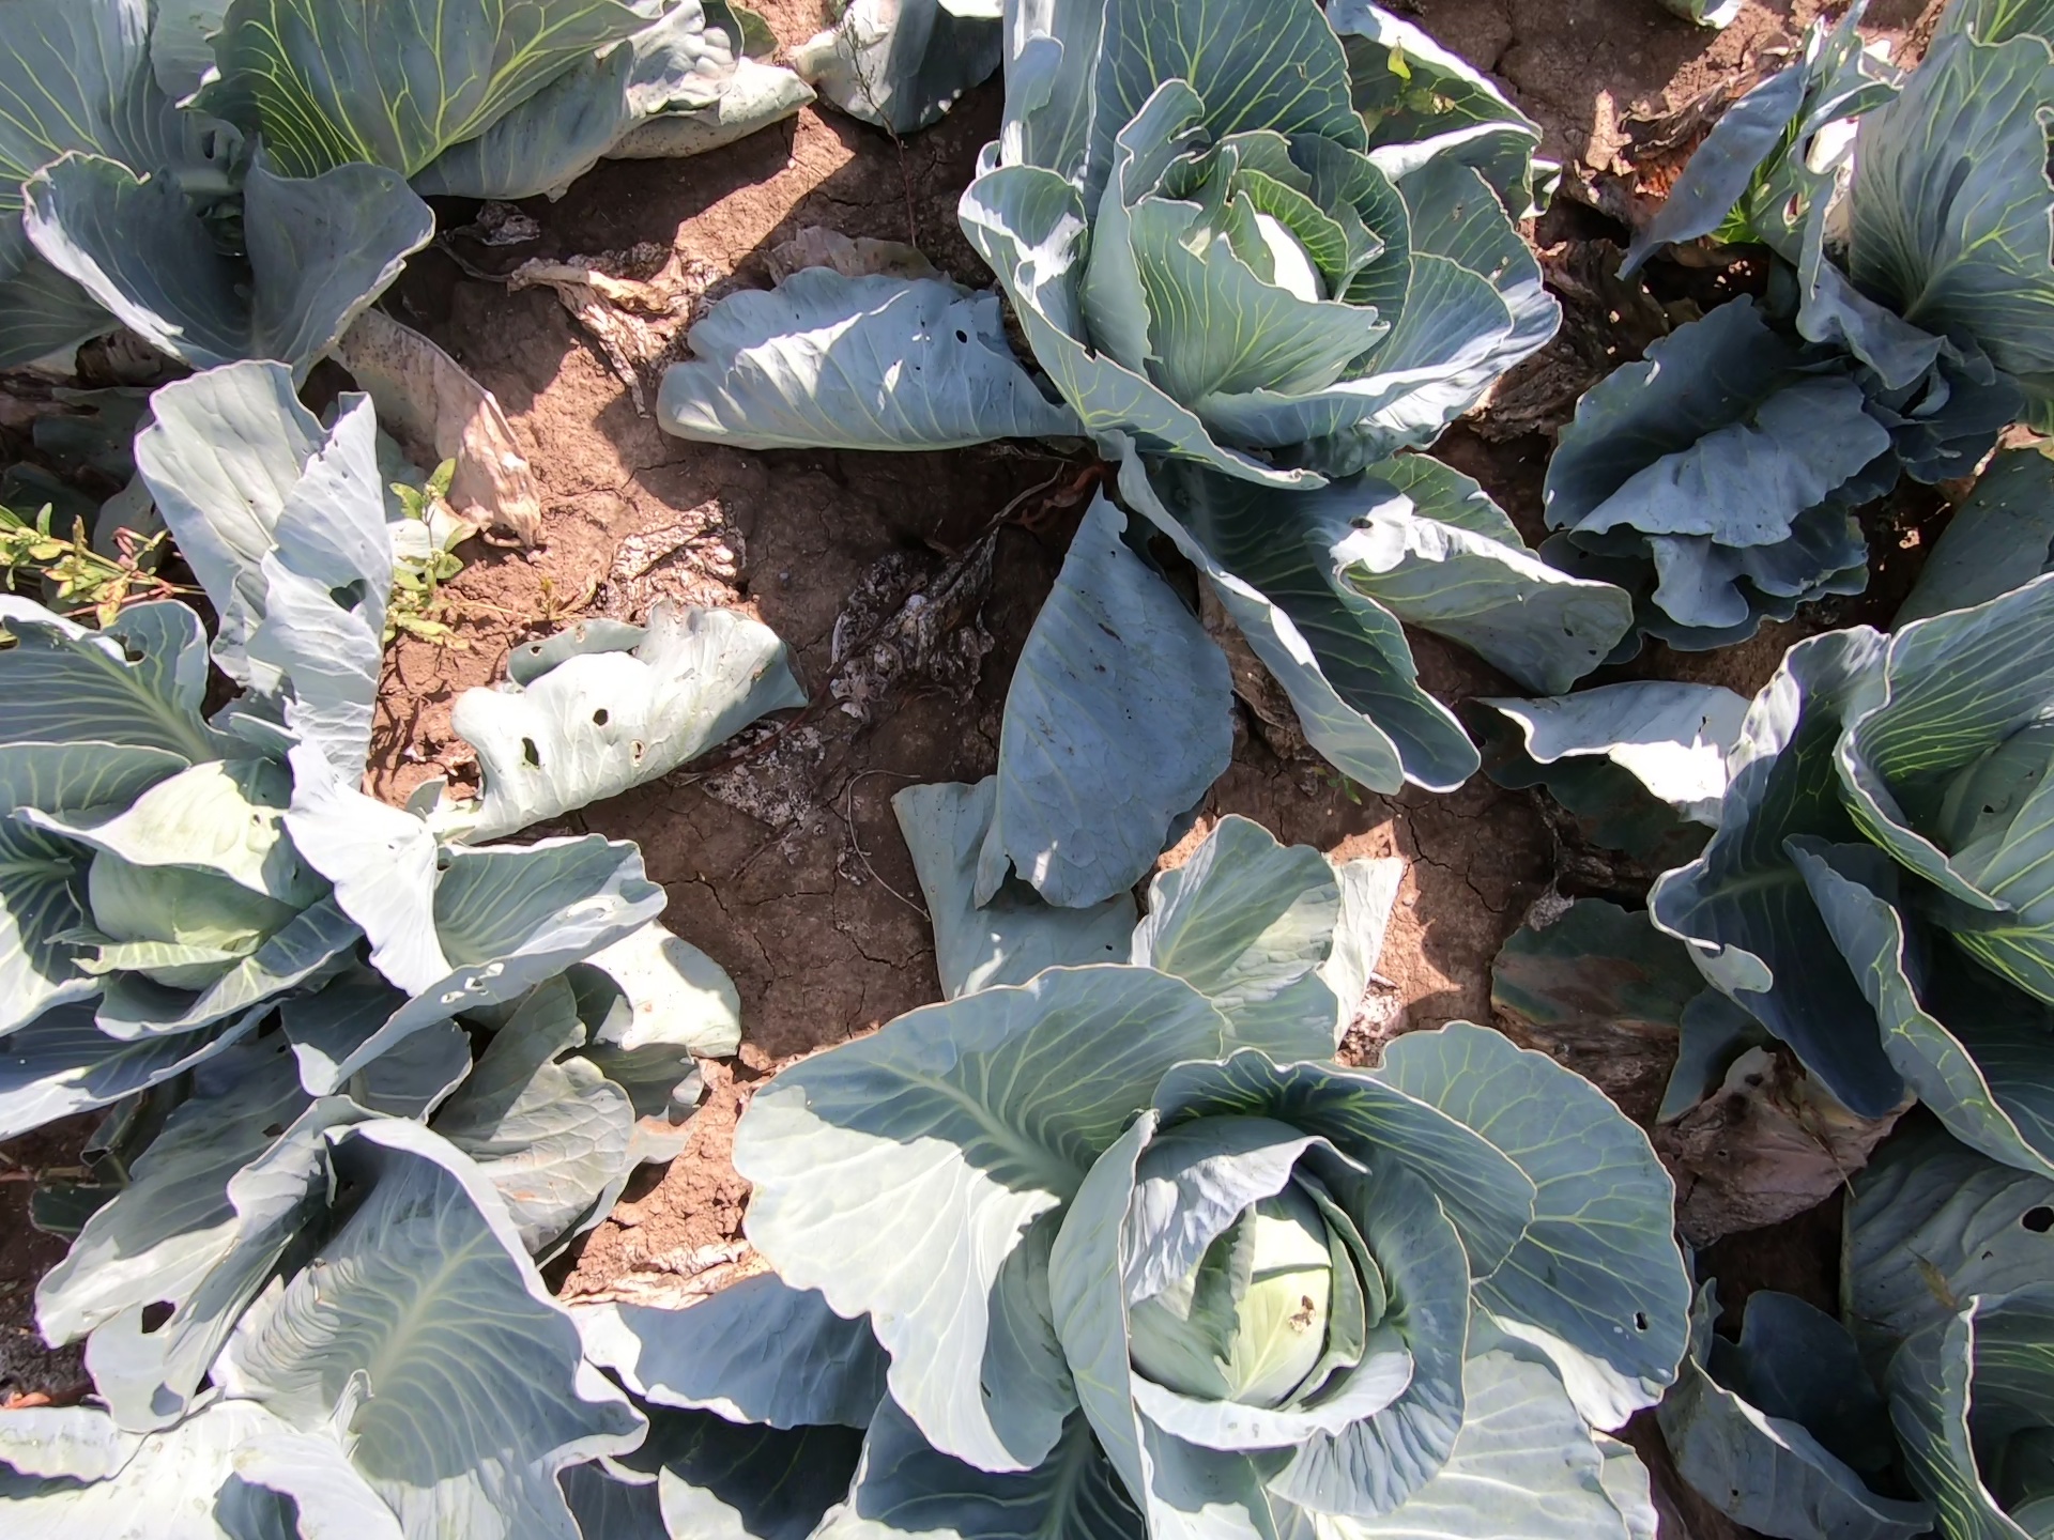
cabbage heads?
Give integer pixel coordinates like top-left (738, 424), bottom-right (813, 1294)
top-left (1154, 199), bottom-right (1335, 395)
top-left (1116, 1152), bottom-right (1349, 1413)
top-left (89, 763), bottom-right (333, 981)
